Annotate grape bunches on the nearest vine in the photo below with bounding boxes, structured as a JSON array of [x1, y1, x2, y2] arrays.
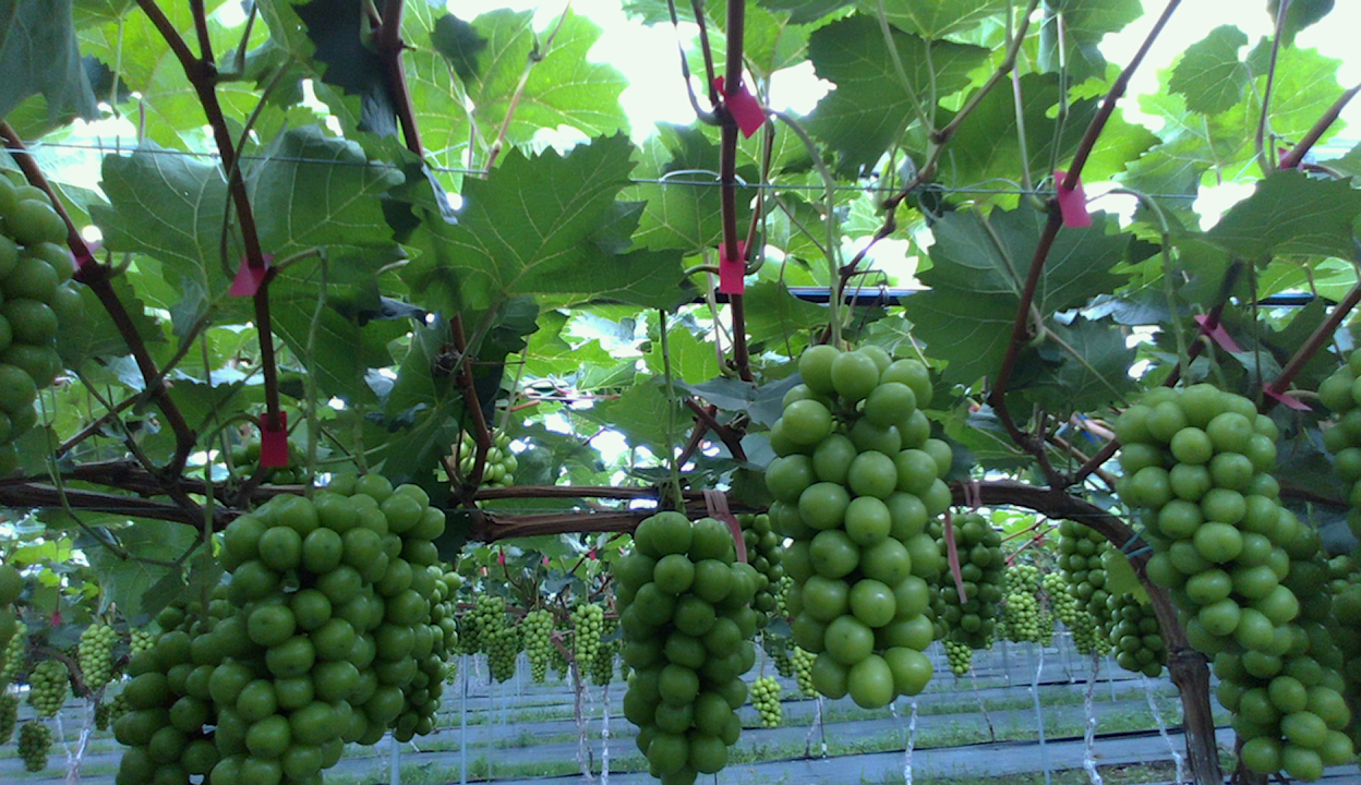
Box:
[[766, 342, 950, 710], [110, 631, 221, 784], [1113, 383, 1300, 657], [1215, 520, 1353, 782], [327, 474, 445, 746], [617, 512, 760, 784], [208, 491, 389, 784]]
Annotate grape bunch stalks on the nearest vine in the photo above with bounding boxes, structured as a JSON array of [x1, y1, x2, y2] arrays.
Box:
[[658, 311, 685, 514], [198, 412, 258, 631], [1083, 186, 1192, 386], [353, 319, 368, 473], [768, 110, 842, 347], [277, 244, 328, 498]]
